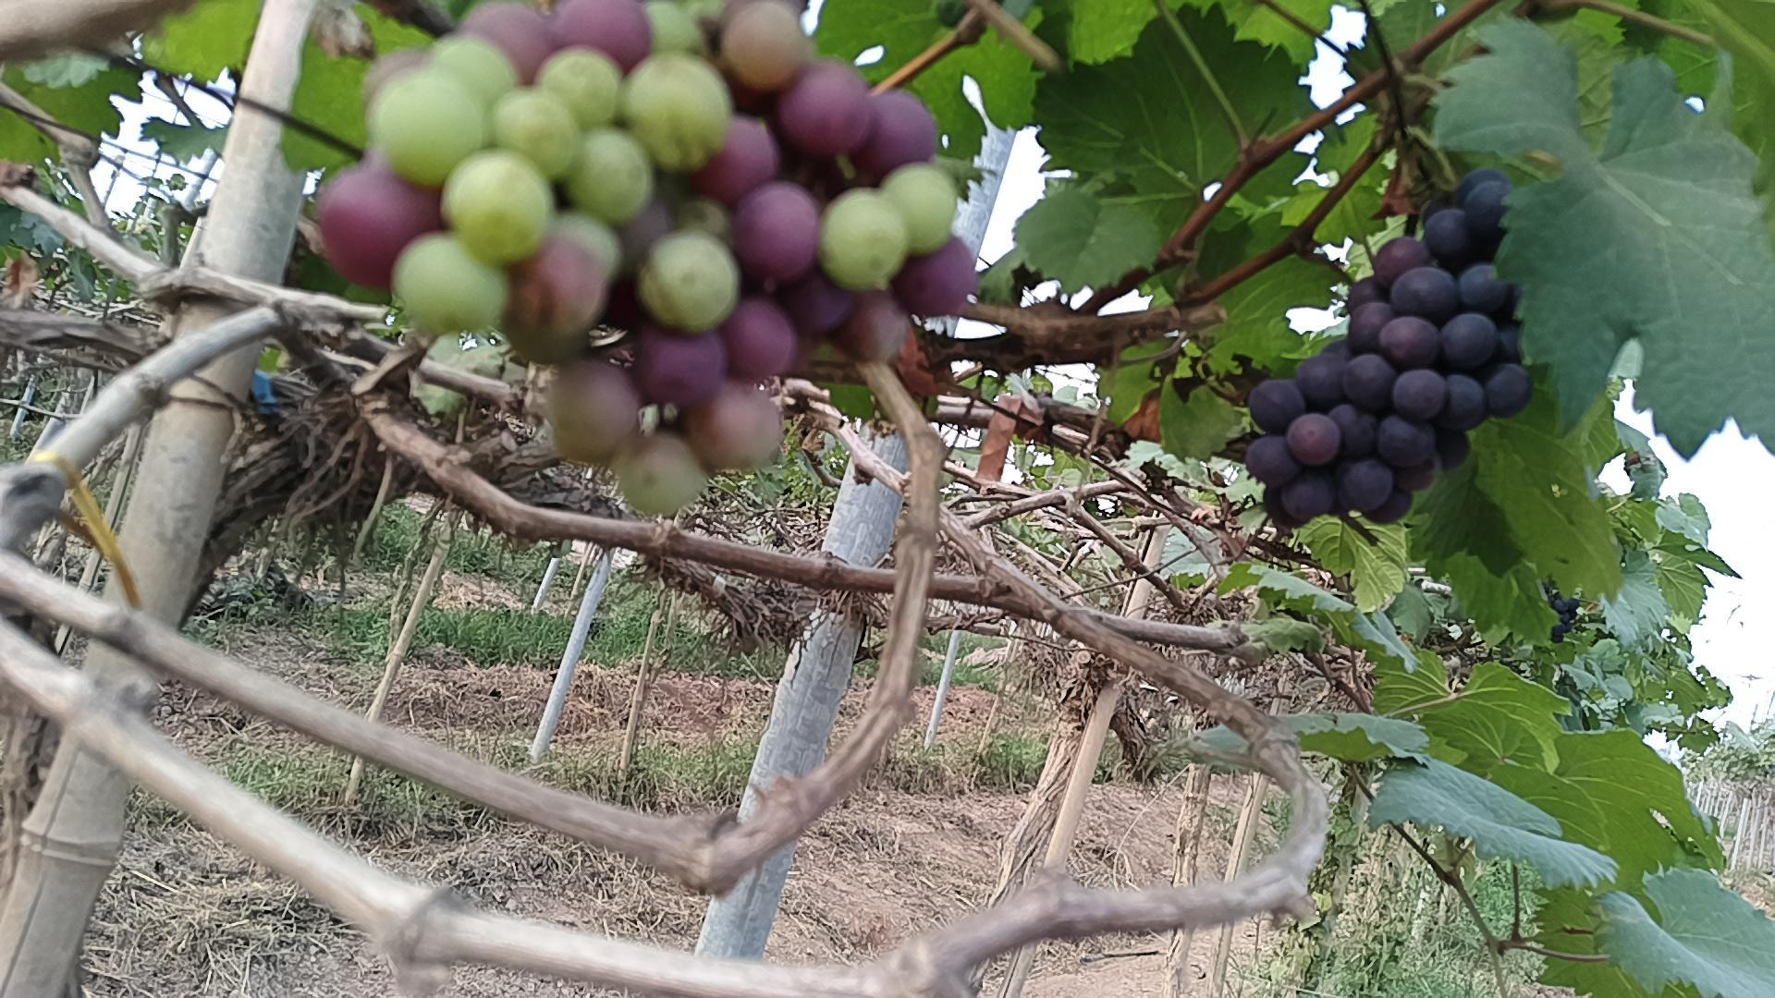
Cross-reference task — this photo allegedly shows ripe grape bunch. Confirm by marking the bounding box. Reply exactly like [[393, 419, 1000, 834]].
[[1245, 170, 1531, 528]]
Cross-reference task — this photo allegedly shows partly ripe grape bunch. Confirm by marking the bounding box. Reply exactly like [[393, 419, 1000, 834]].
[[316, 0, 976, 513]]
